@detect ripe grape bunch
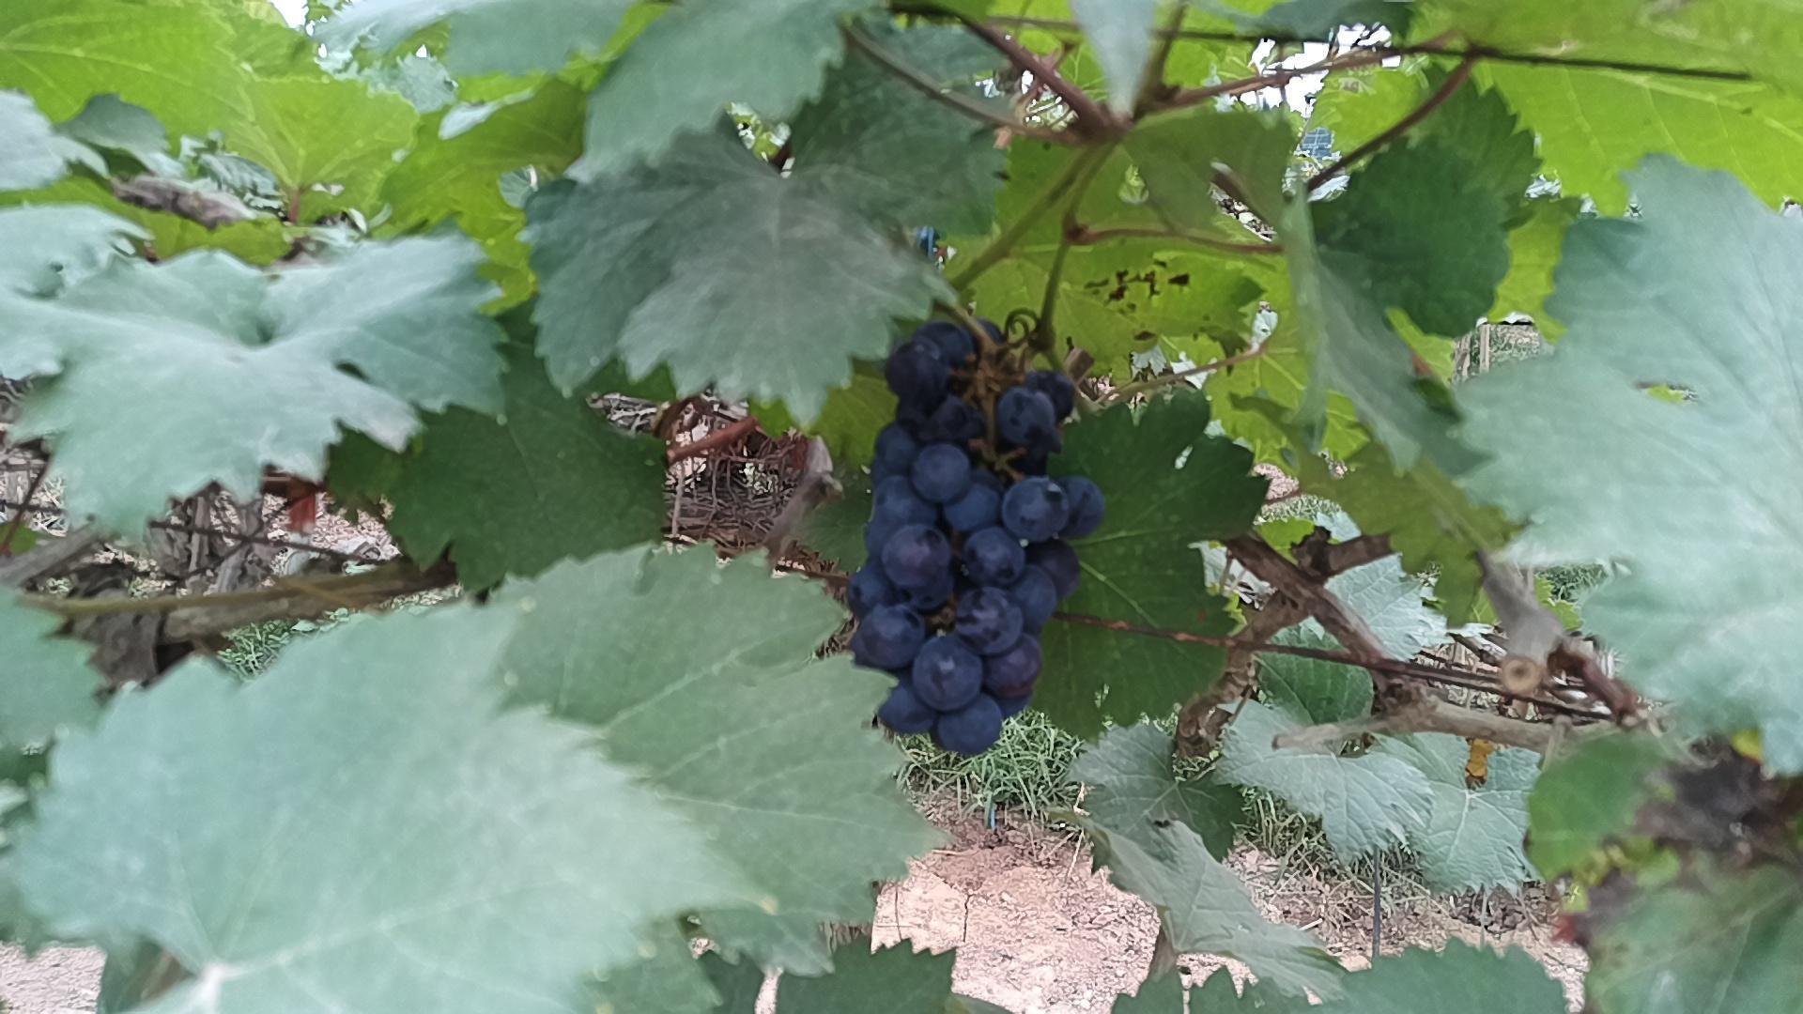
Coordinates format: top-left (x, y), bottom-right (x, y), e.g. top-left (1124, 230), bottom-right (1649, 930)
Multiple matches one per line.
top-left (847, 318), bottom-right (1106, 756)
